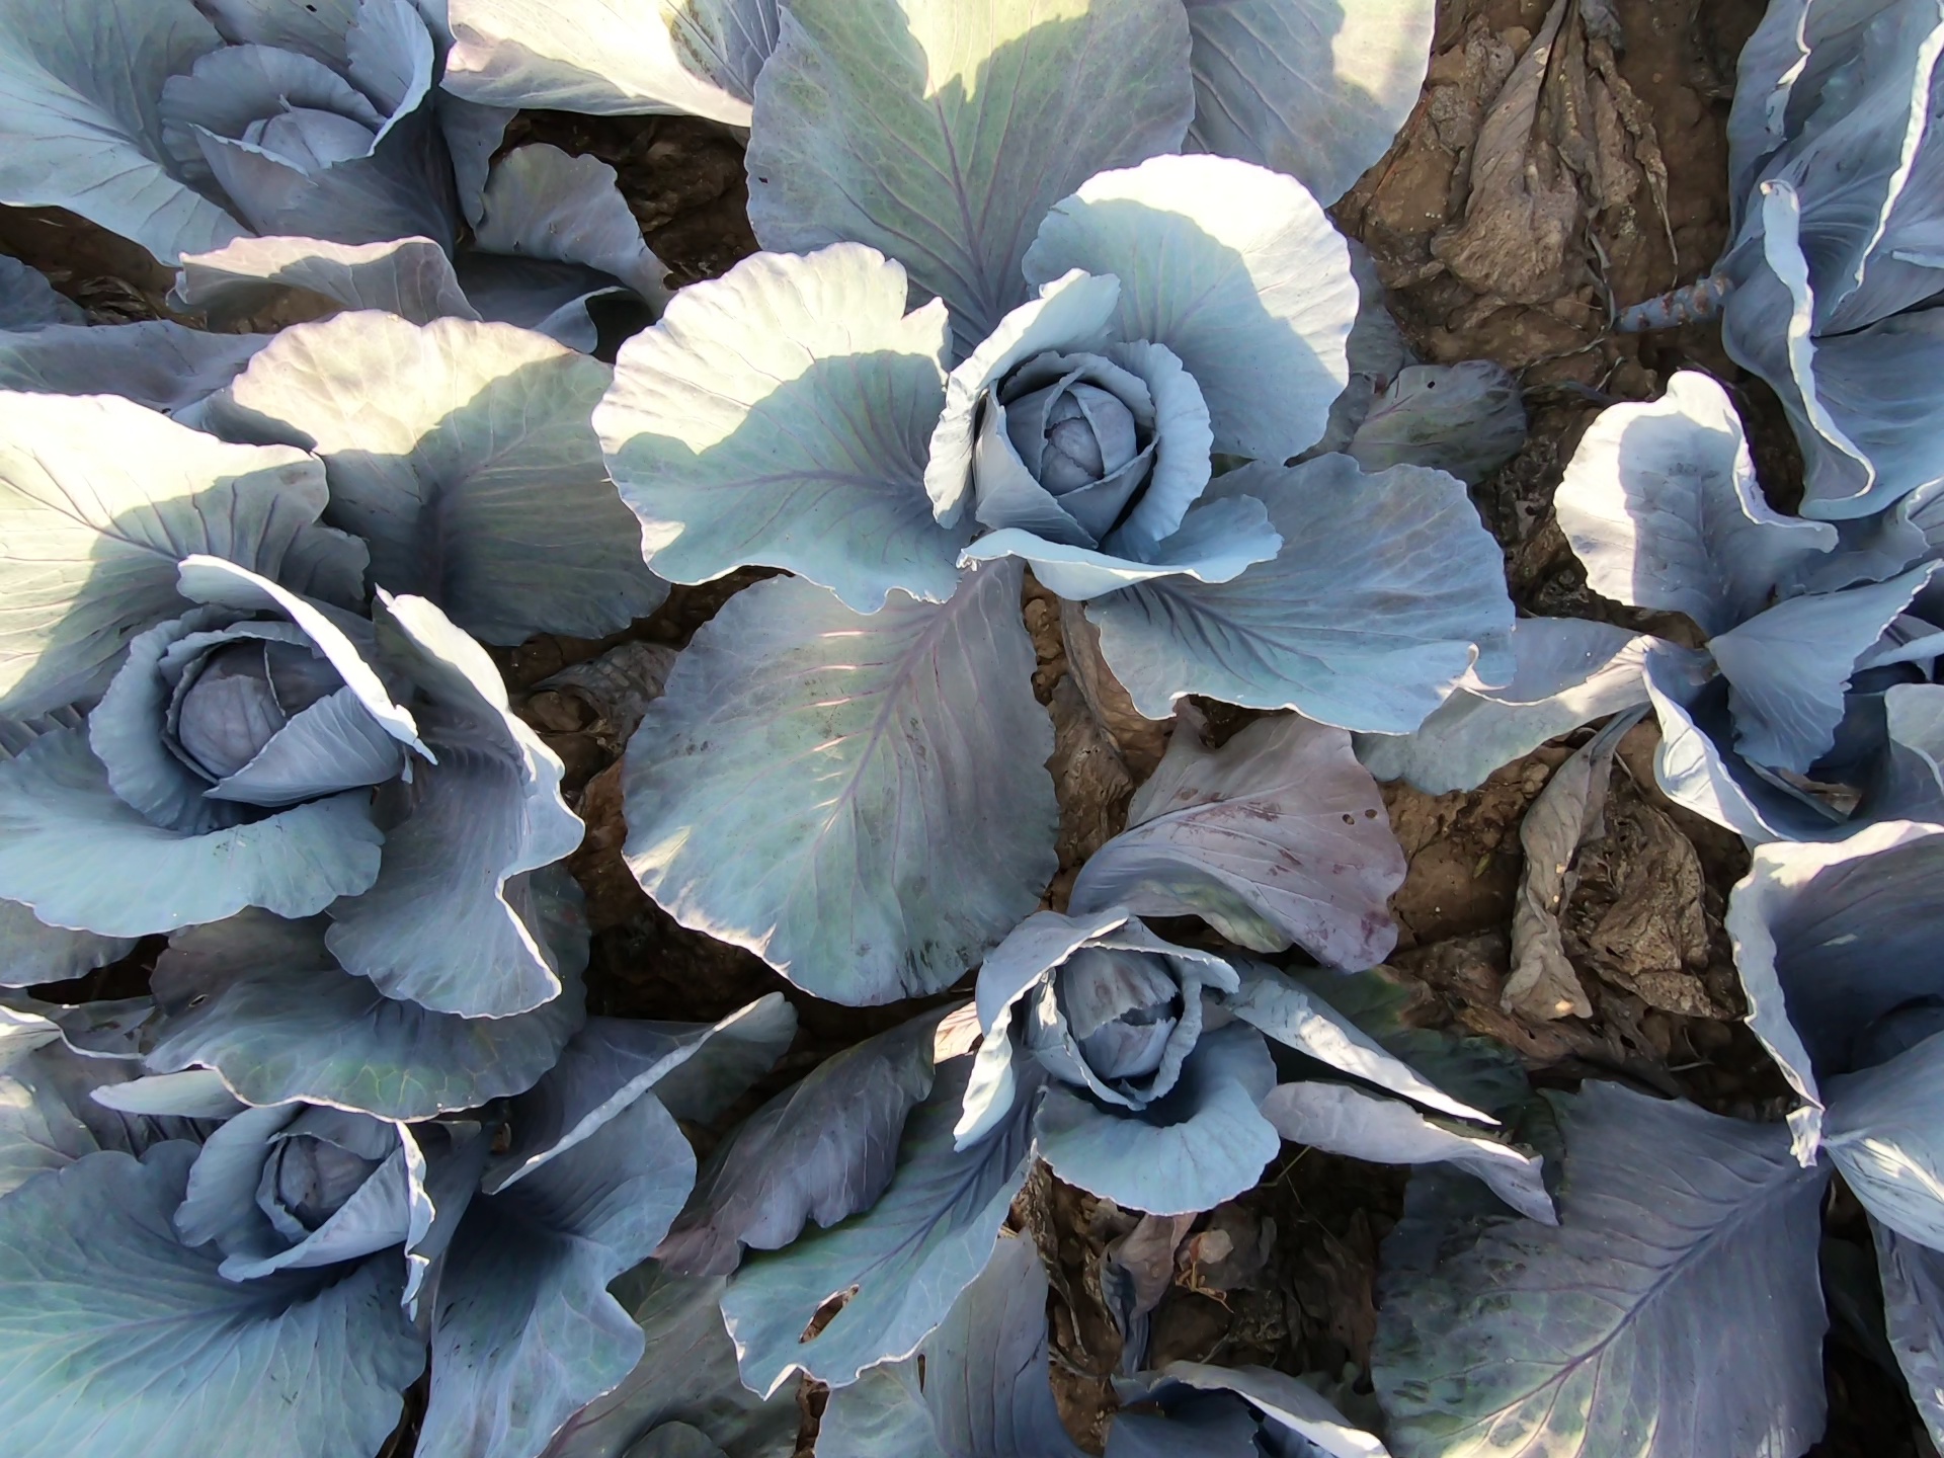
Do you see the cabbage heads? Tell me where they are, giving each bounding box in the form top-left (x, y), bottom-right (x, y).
top-left (181, 630), bottom-right (360, 783)
top-left (234, 109), bottom-right (398, 237)
top-left (271, 1107), bottom-right (403, 1234)
top-left (1715, 594), bottom-right (1942, 773)
top-left (1046, 957), bottom-right (1177, 1078)
top-left (993, 386), bottom-right (1136, 515)
top-left (1772, 106), bottom-right (1941, 339)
